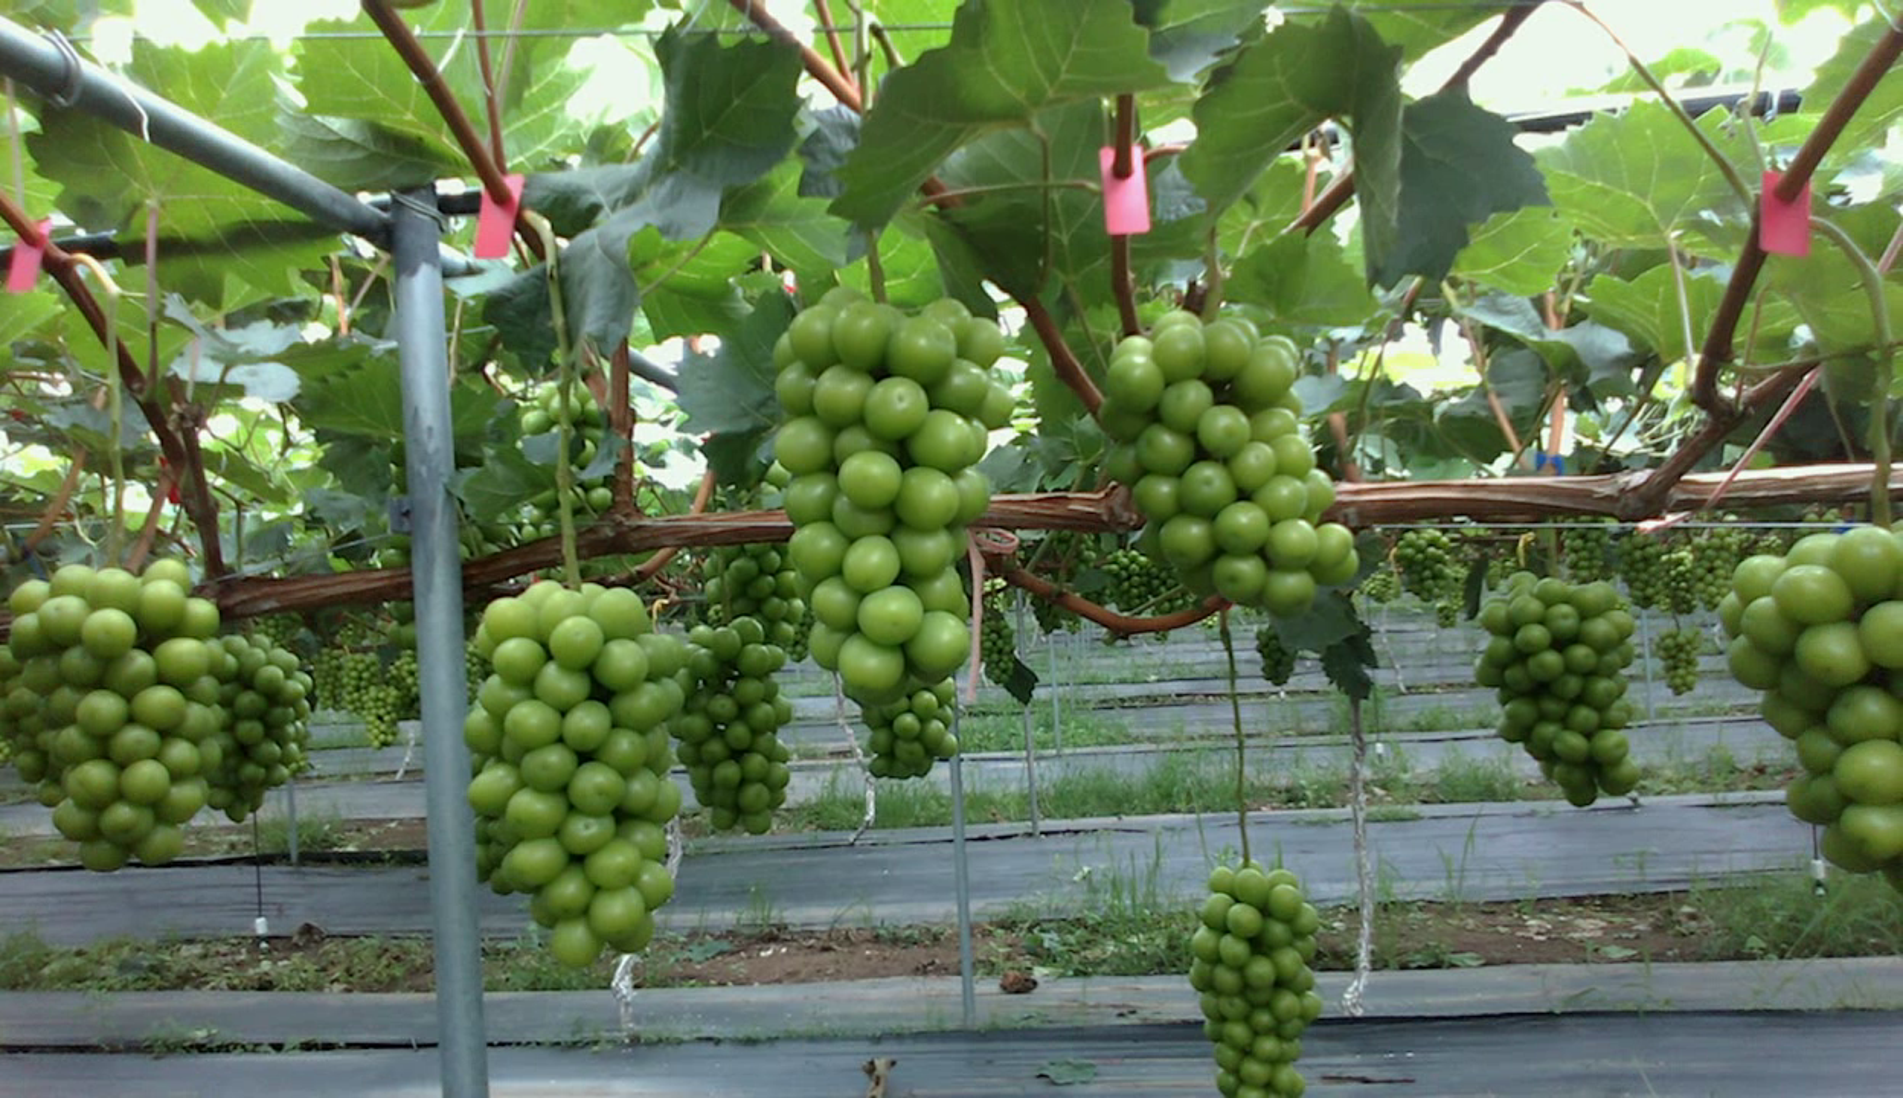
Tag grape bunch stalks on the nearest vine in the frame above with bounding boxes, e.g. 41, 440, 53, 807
521, 209, 581, 592
862, 230, 887, 302
64, 253, 125, 567
1810, 215, 1895, 532
1200, 198, 1226, 326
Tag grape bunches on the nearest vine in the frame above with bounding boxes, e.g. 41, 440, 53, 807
1715, 520, 1901, 892
464, 579, 685, 970
772, 287, 1017, 706
1096, 311, 1360, 616
3, 558, 226, 872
